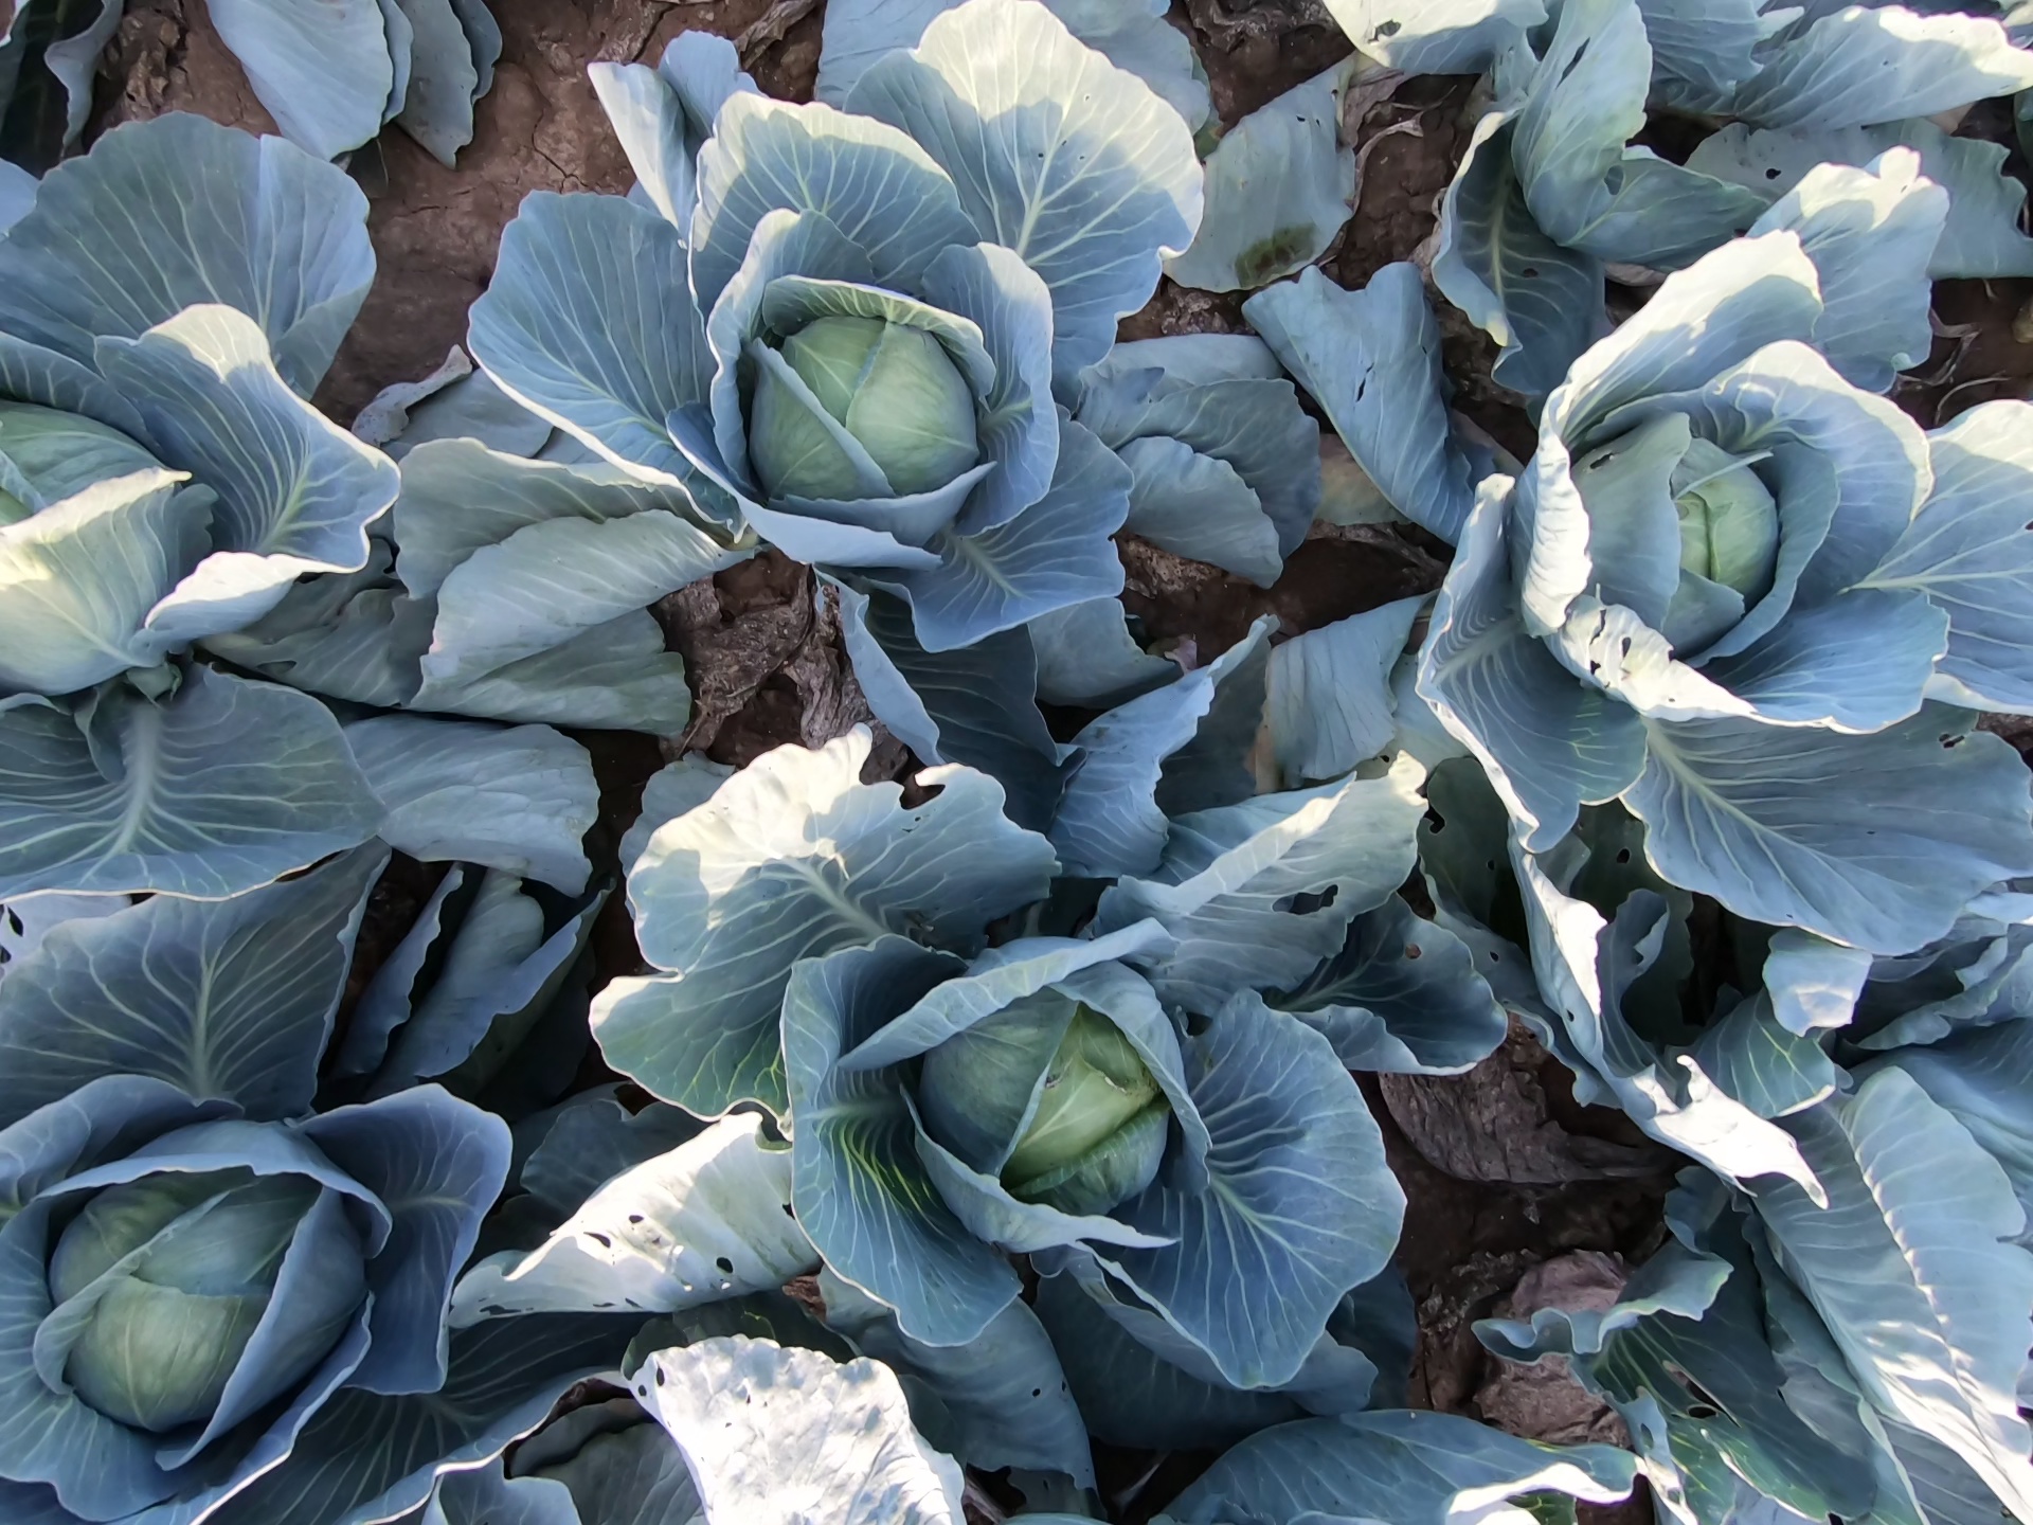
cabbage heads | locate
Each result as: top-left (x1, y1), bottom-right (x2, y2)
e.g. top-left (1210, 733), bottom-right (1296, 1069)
top-left (44, 1152), bottom-right (361, 1429)
top-left (925, 964), bottom-right (1172, 1217)
top-left (758, 311), bottom-right (975, 531)
top-left (1563, 436), bottom-right (1783, 644)
top-left (3, 400), bottom-right (185, 692)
